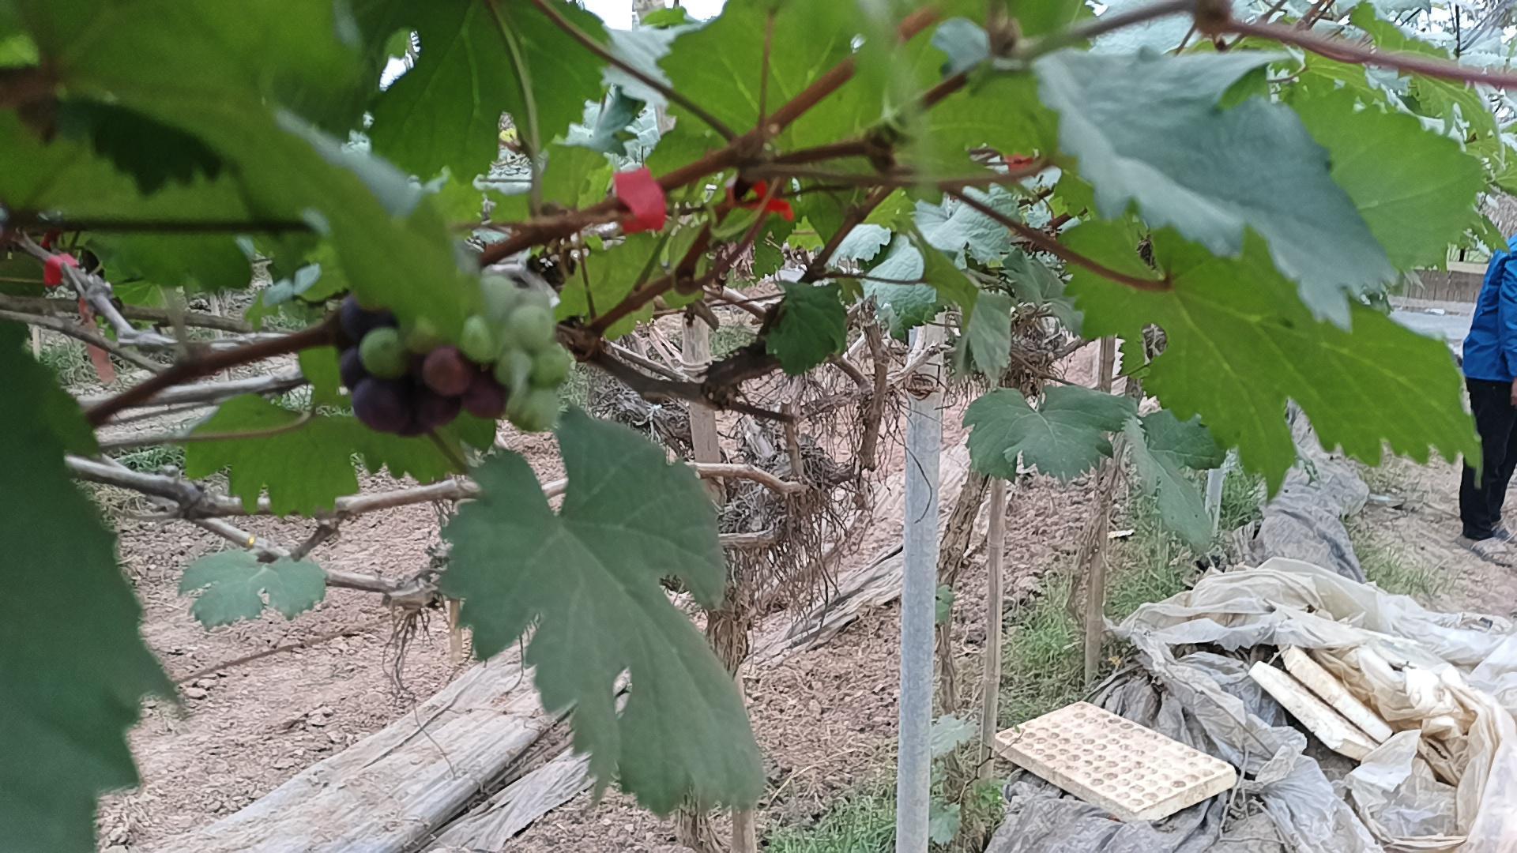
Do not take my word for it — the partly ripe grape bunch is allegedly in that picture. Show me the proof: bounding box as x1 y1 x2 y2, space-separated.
337 268 573 436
